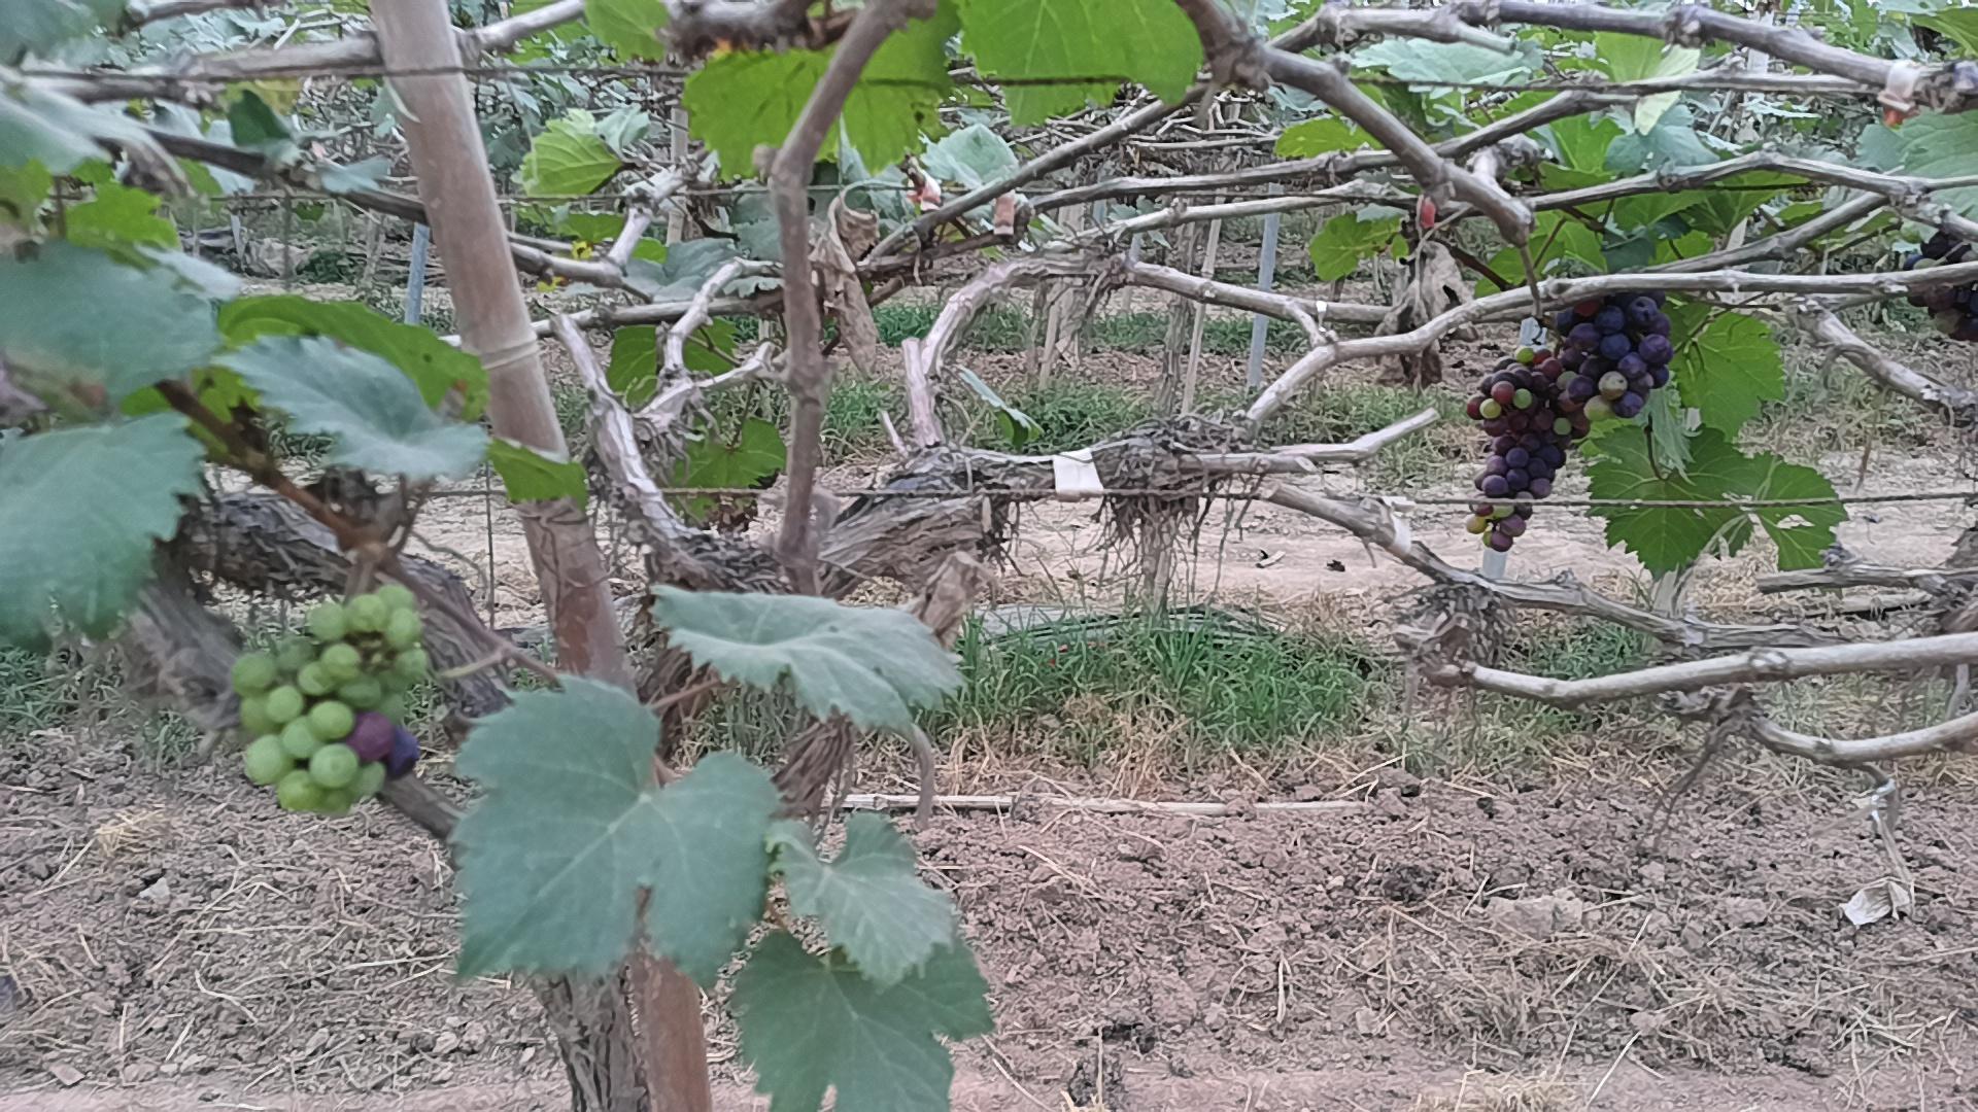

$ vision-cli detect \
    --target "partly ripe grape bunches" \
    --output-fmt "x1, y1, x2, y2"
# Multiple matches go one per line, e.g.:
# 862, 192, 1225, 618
1903, 231, 1977, 342
1465, 293, 1673, 554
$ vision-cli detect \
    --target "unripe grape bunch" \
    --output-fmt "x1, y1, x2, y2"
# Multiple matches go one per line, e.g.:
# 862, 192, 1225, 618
232, 586, 427, 812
